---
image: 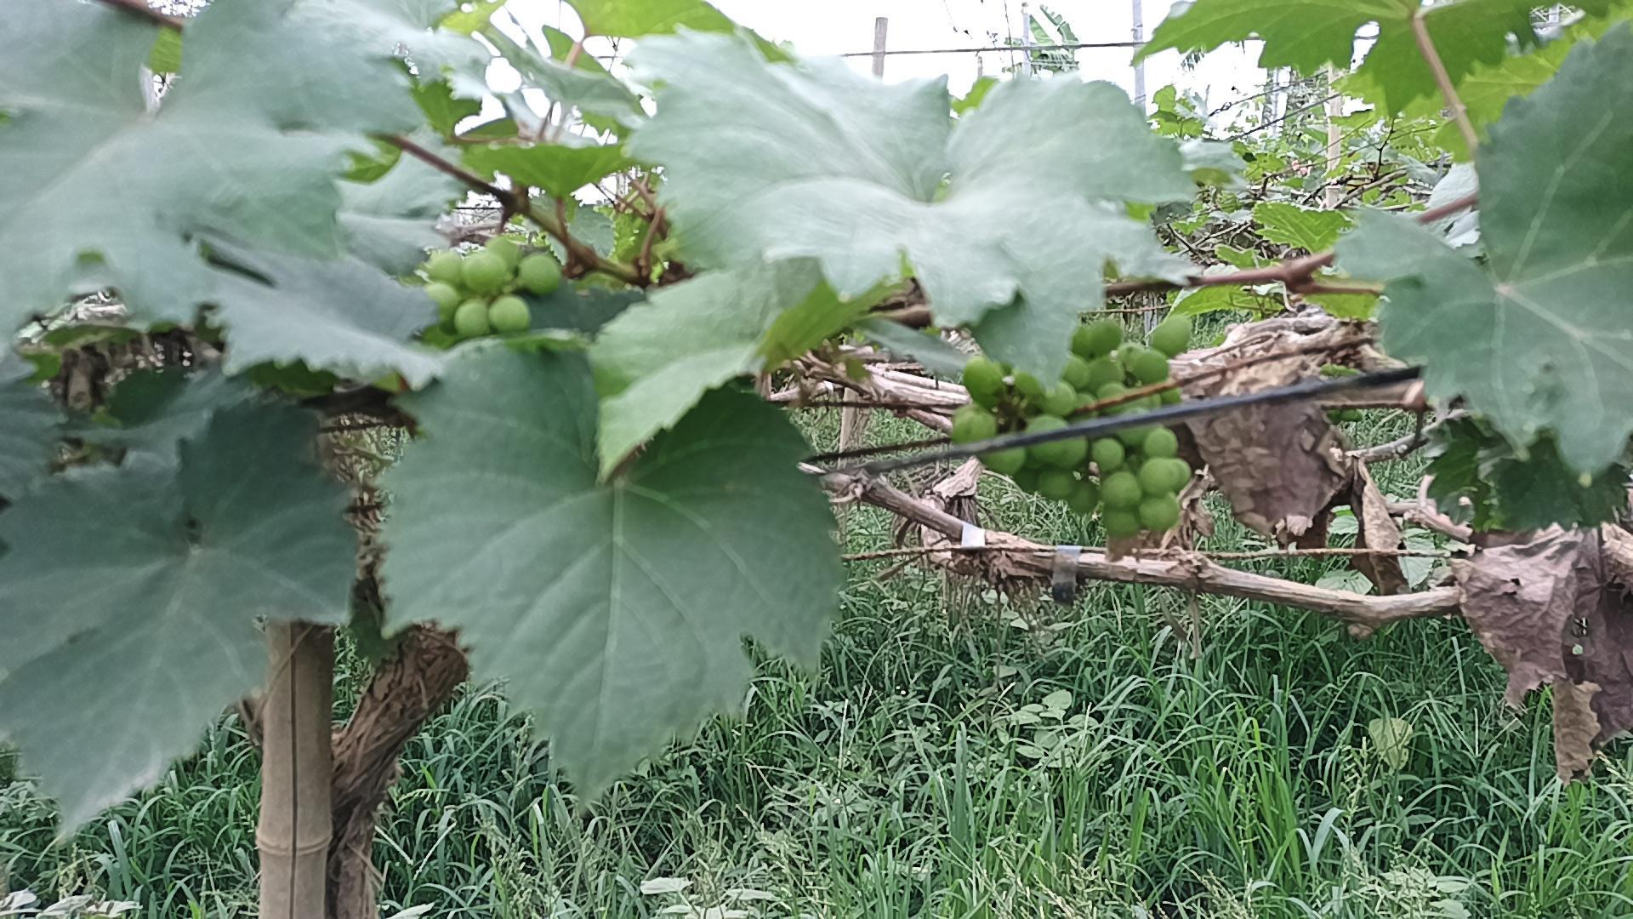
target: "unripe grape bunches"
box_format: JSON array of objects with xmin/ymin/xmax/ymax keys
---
[
  {"xmin": 417, "ymin": 235, "xmax": 561, "ymax": 339},
  {"xmin": 950, "ymin": 322, "xmax": 1192, "ymax": 539}
]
